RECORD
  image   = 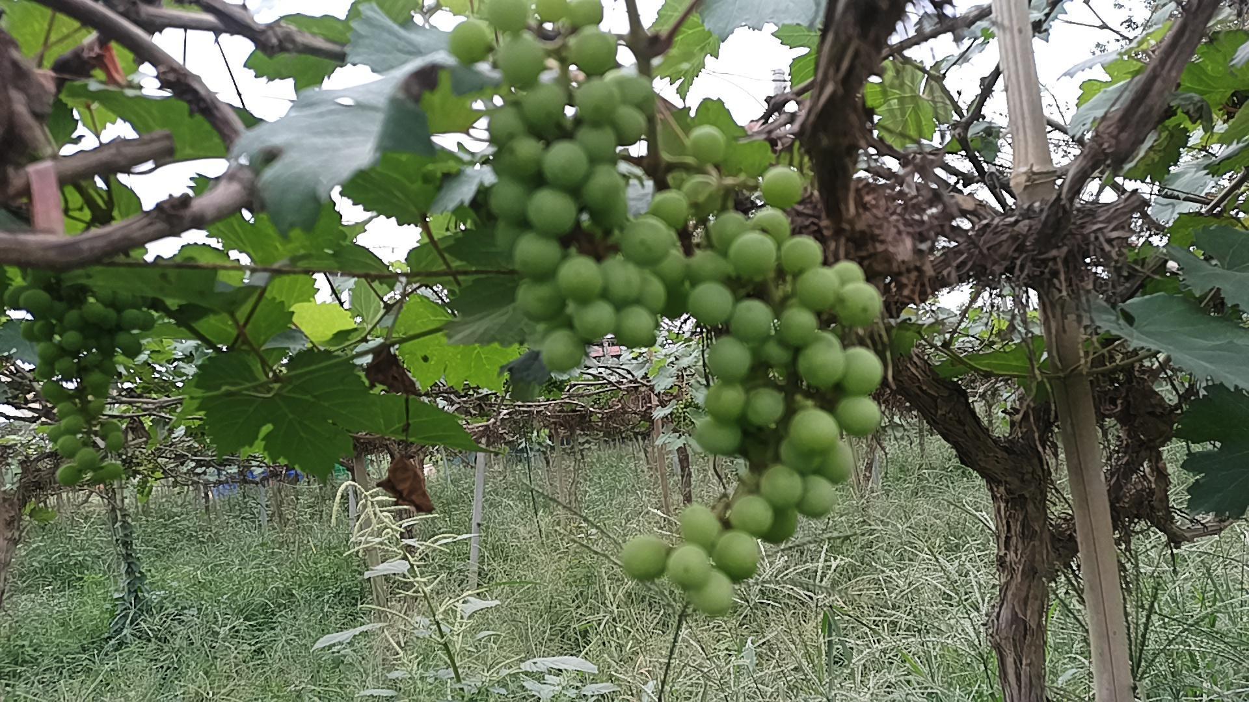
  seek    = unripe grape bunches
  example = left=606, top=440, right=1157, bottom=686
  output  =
left=623, top=125, right=885, bottom=615
left=672, top=394, right=703, bottom=430
left=449, top=0, right=693, bottom=374
left=7, top=266, right=155, bottom=487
